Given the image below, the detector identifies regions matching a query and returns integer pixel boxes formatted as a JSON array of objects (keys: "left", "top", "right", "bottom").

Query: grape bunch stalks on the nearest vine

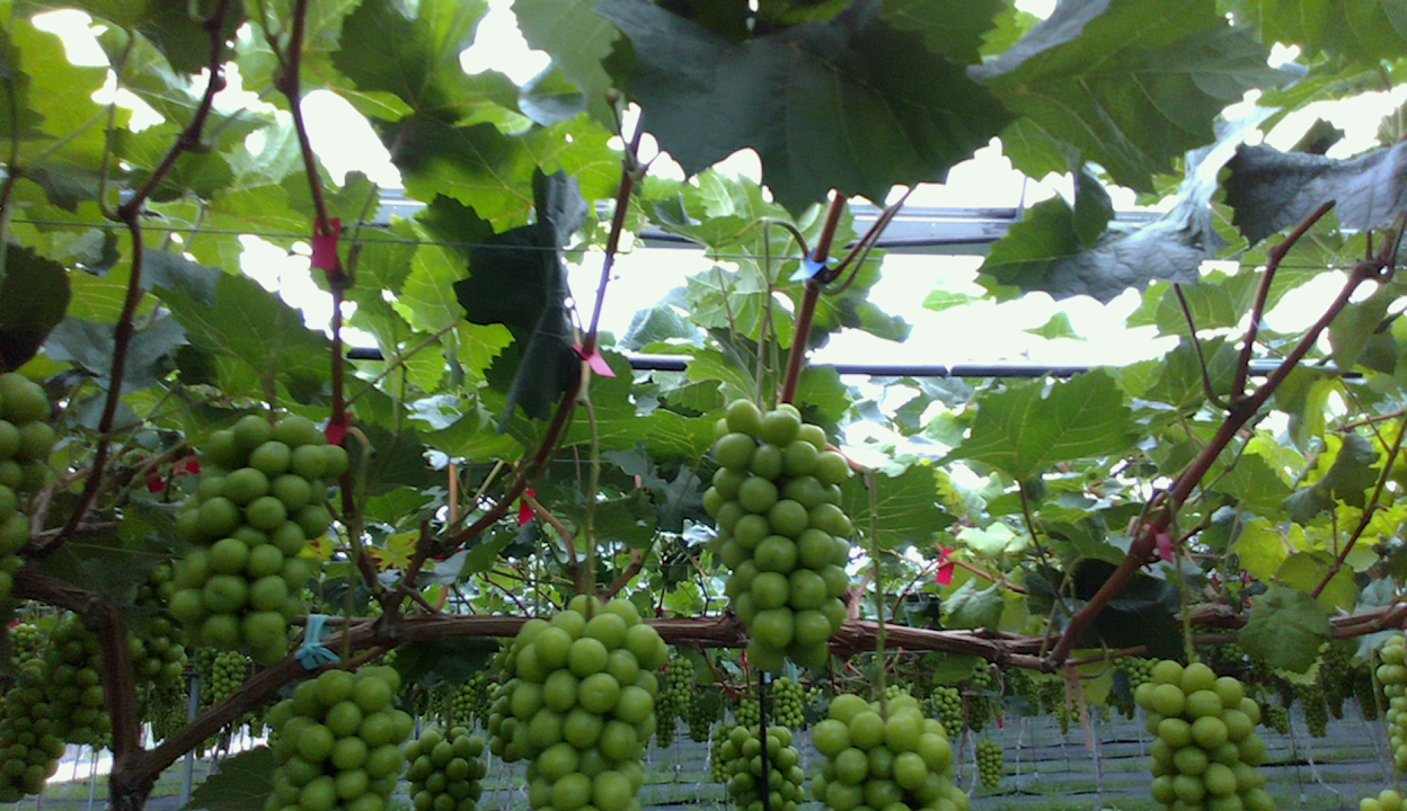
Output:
[
  {"left": 576, "top": 357, "right": 600, "bottom": 622},
  {"left": 826, "top": 442, "right": 887, "bottom": 722},
  {"left": 265, "top": 278, "right": 286, "bottom": 427},
  {"left": 1133, "top": 487, "right": 1196, "bottom": 663},
  {"left": 338, "top": 425, "right": 375, "bottom": 670},
  {"left": 762, "top": 219, "right": 811, "bottom": 410}
]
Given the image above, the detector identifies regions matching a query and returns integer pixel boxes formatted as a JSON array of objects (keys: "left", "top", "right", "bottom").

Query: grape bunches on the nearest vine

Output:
[
  {"left": 264, "top": 665, "right": 413, "bottom": 810},
  {"left": 701, "top": 399, "right": 852, "bottom": 674},
  {"left": 511, "top": 595, "right": 669, "bottom": 810},
  {"left": 1134, "top": 660, "right": 1276, "bottom": 810},
  {"left": 168, "top": 415, "right": 348, "bottom": 668},
  {"left": 812, "top": 693, "right": 970, "bottom": 810}
]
